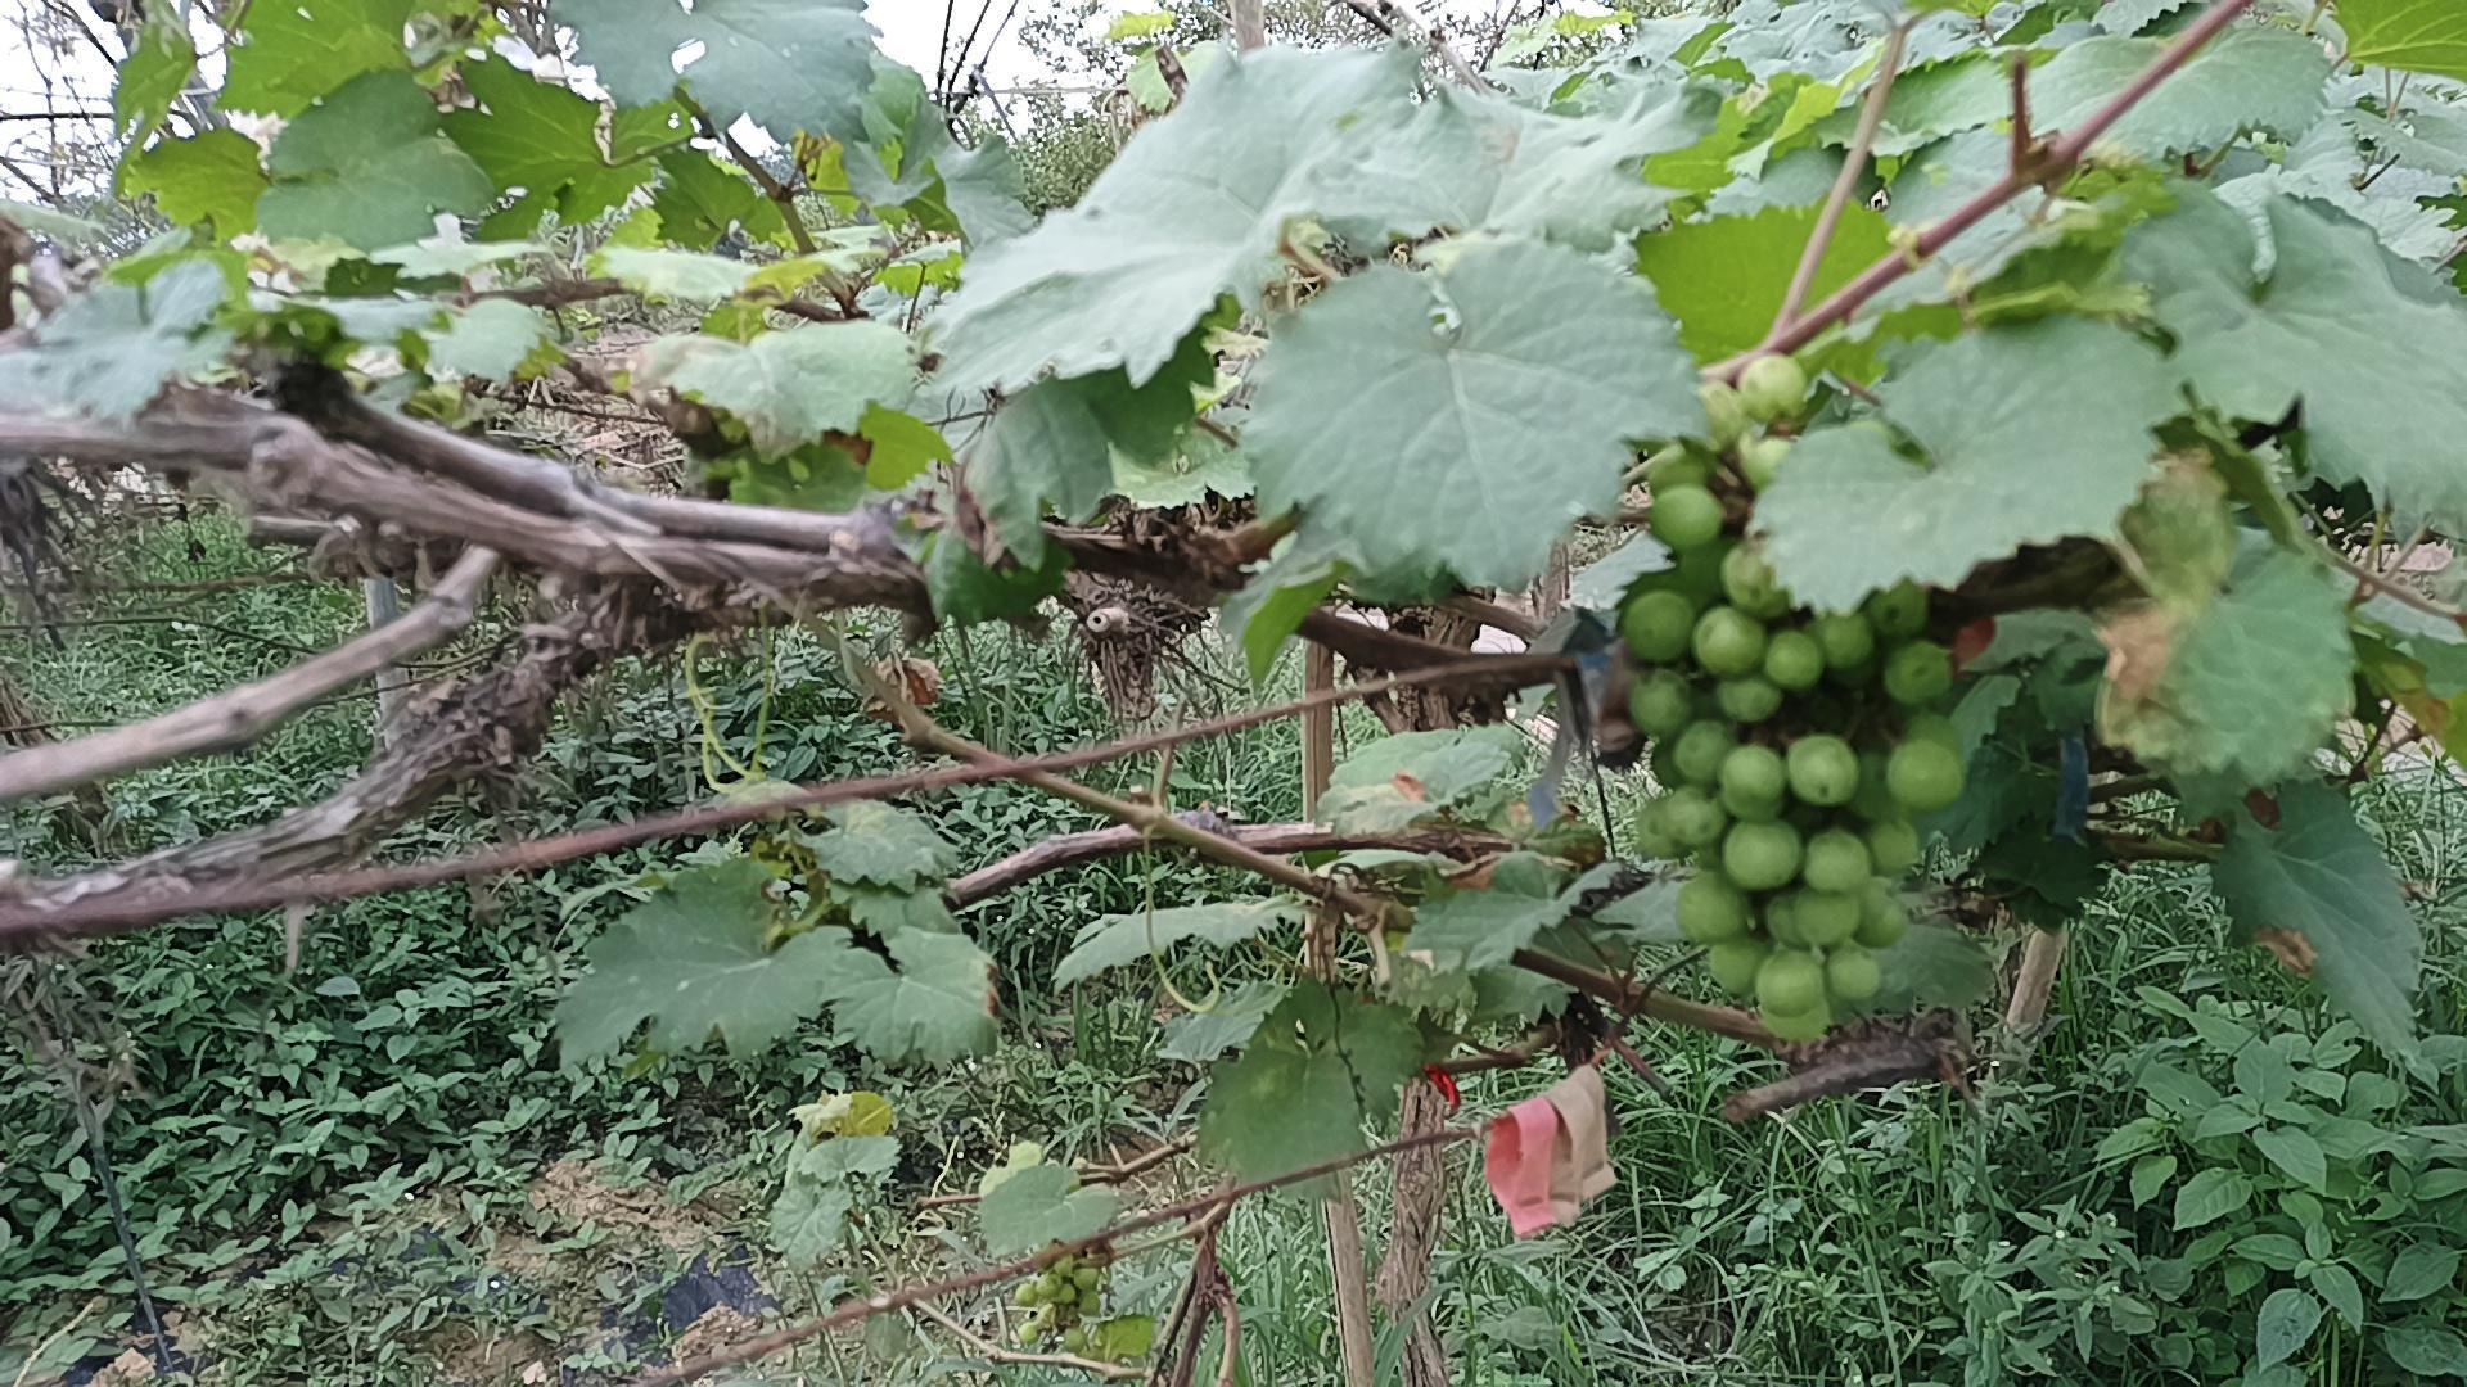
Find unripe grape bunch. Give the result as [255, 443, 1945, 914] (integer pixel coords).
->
[1602, 358, 1961, 1038]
